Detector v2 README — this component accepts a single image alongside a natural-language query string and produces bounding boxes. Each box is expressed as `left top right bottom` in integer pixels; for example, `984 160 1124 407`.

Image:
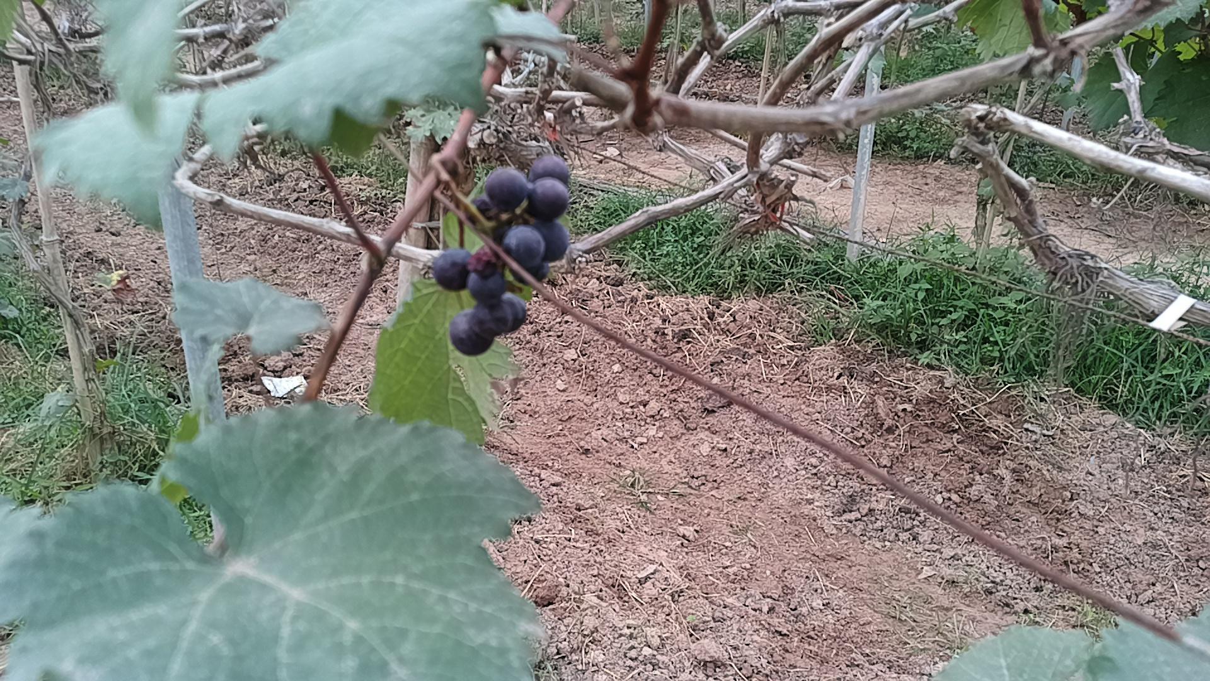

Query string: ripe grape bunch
431 154 570 357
